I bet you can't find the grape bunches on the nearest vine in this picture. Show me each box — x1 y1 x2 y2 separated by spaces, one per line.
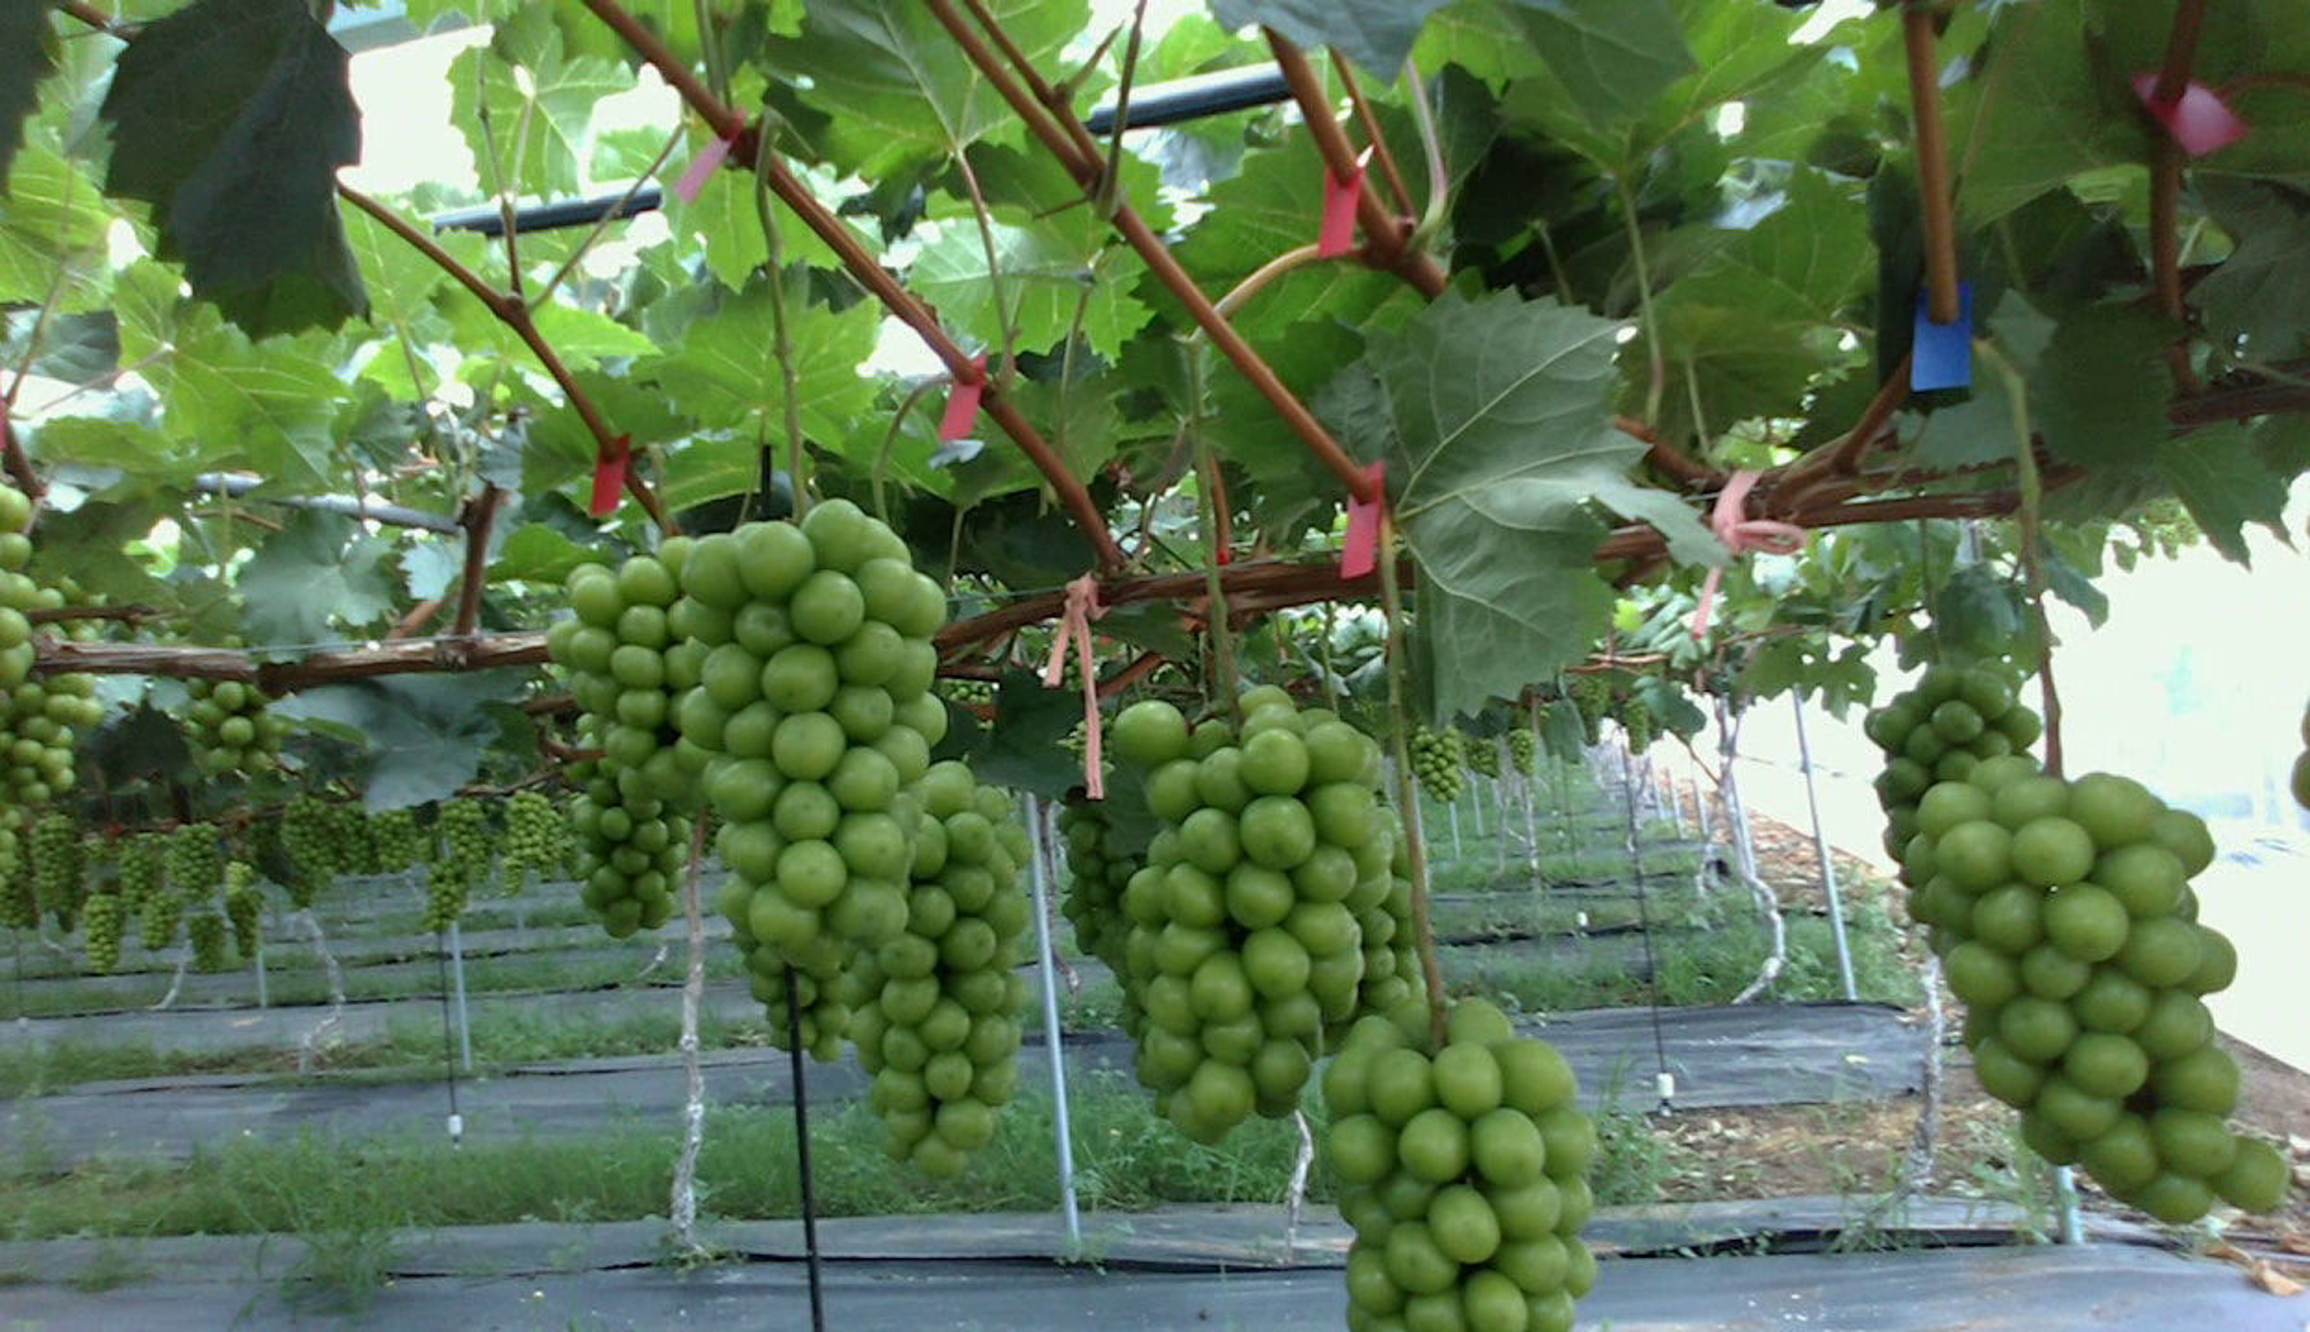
850 762 1031 1182
1322 997 1597 1330
544 536 709 810
1905 751 2290 1227
676 496 948 973
1112 684 1396 1143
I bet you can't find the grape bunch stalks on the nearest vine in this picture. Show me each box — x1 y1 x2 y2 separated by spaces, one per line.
635 442 670 538
1175 326 1240 736
1975 337 2062 777
755 107 807 522
1379 514 1446 1058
